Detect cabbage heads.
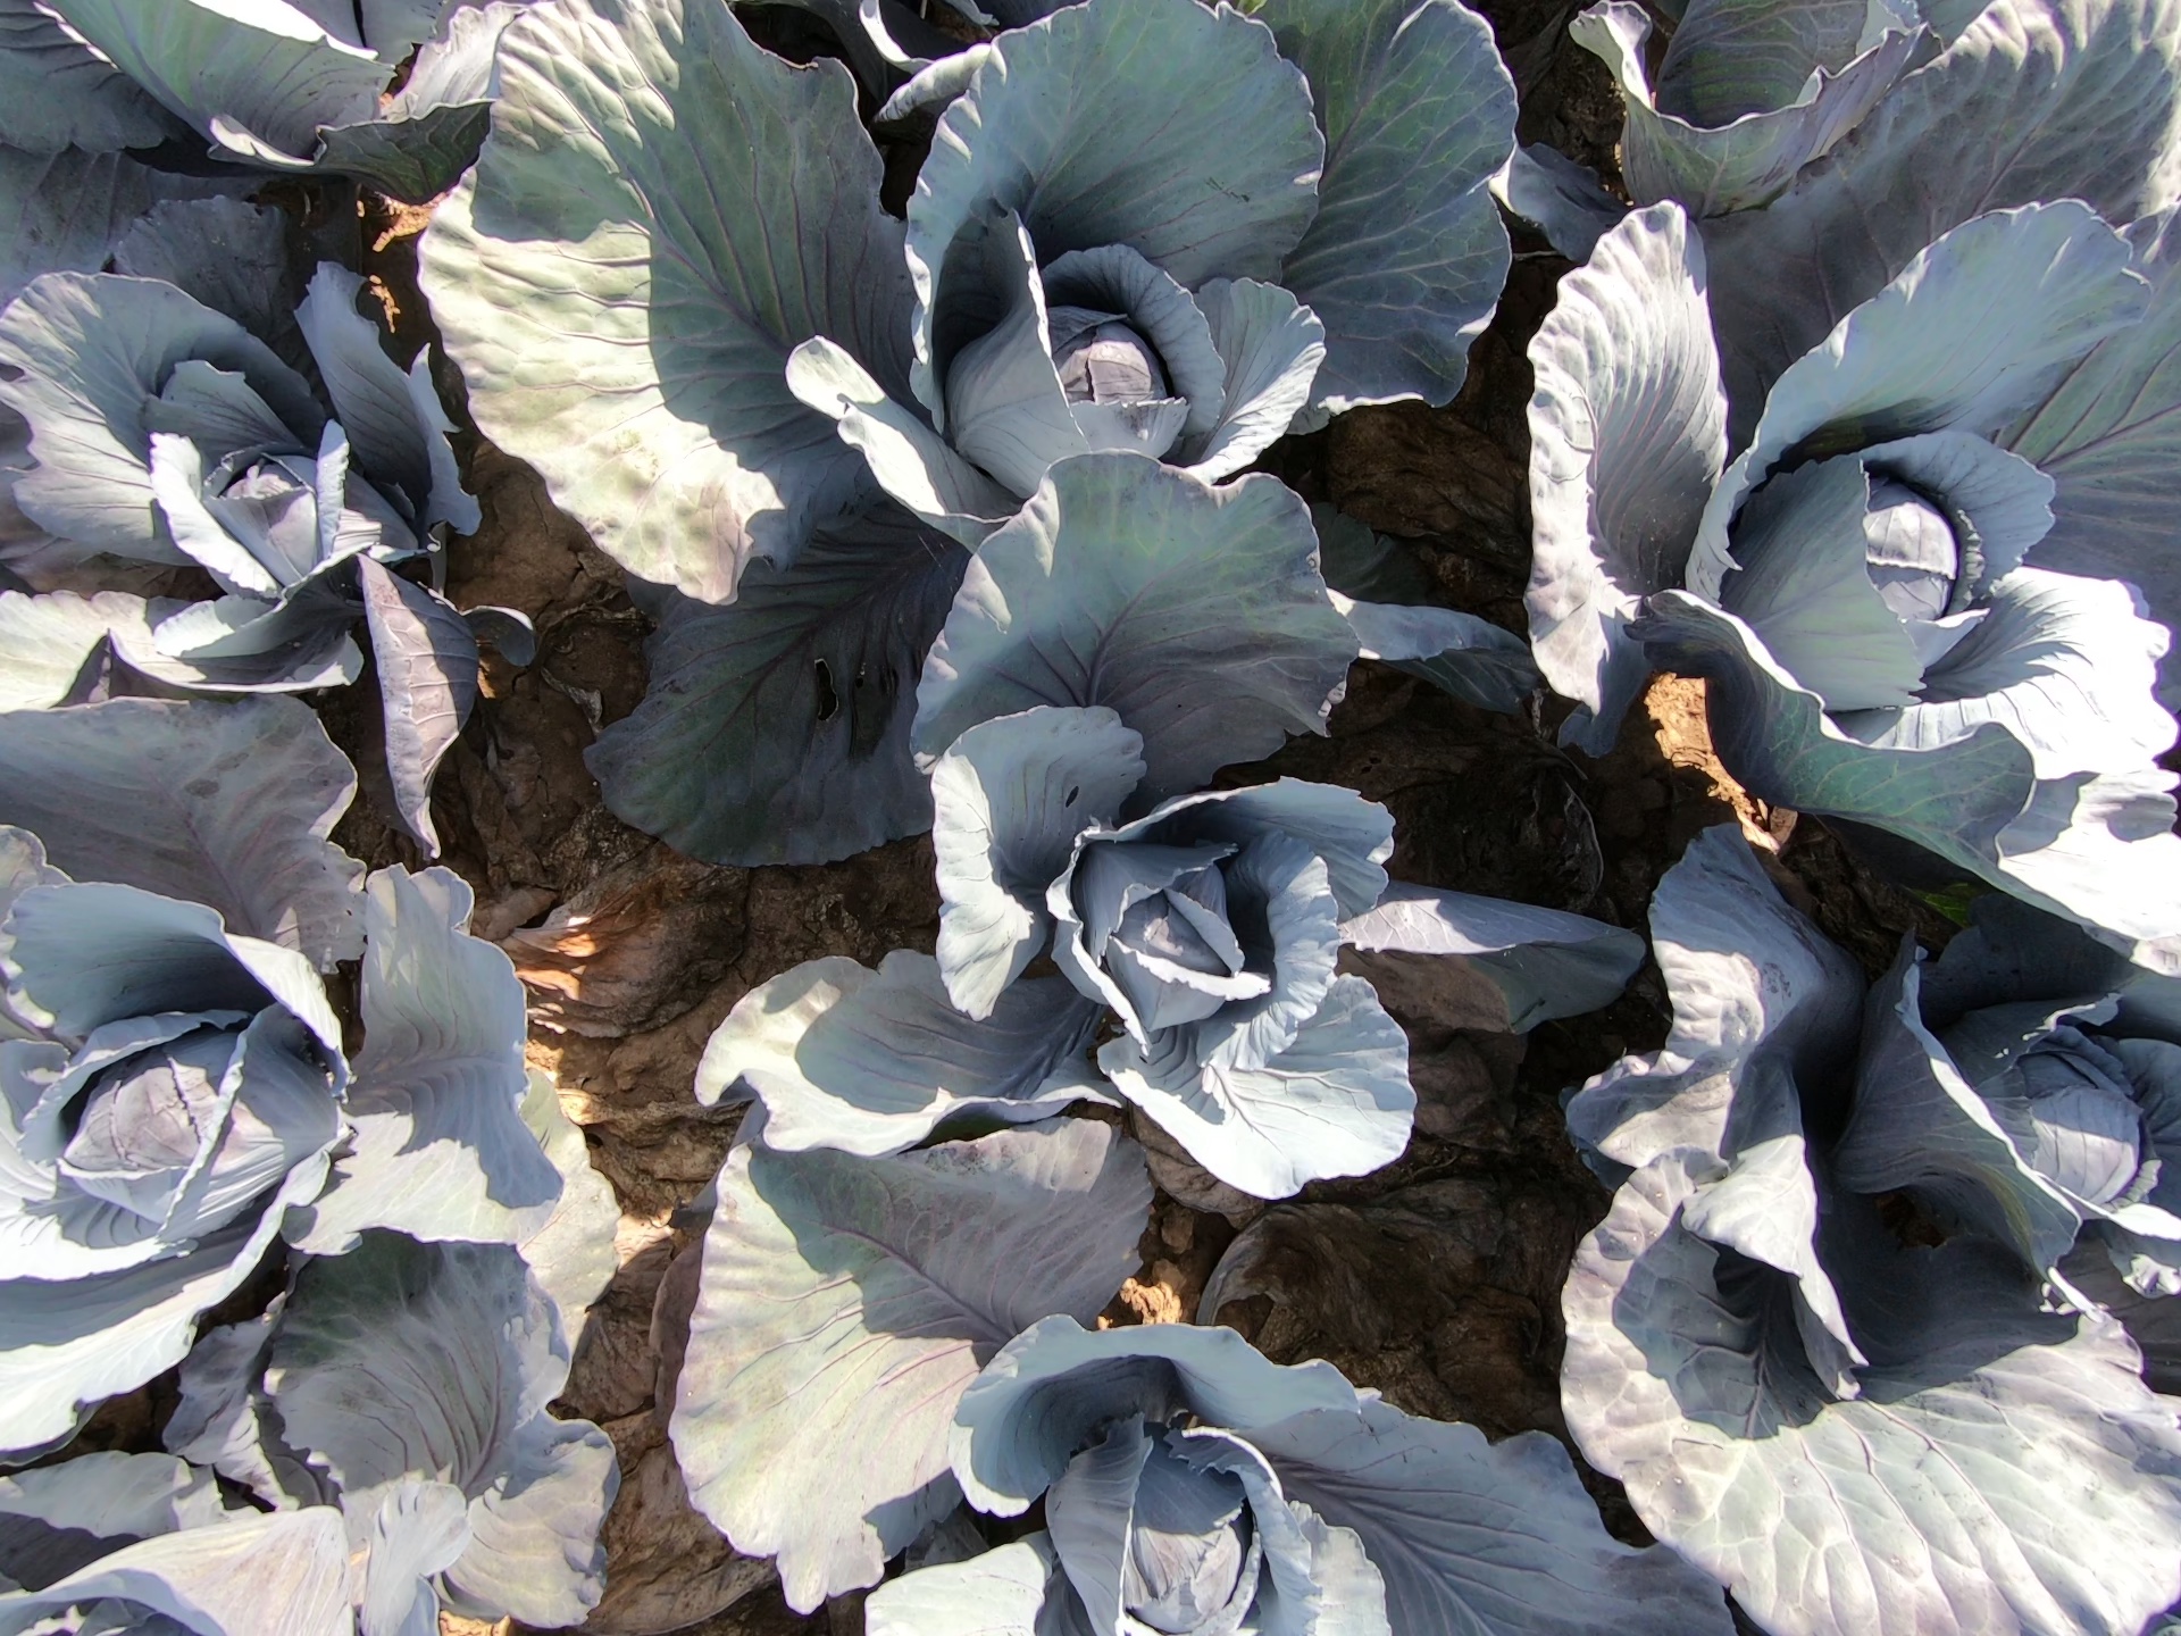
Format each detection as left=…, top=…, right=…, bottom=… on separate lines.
left=1762, top=484, right=1959, bottom=712
left=131, top=5, right=353, bottom=125
left=1108, top=1469, right=1251, bottom=1635
left=39, top=1539, right=289, bottom=1633
left=210, top=454, right=356, bottom=587
left=81, top=1022, right=315, bottom=1225
left=1108, top=868, right=1239, bottom=1013
left=1952, top=1040, right=2149, bottom=1219
left=993, top=299, right=1167, bottom=499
